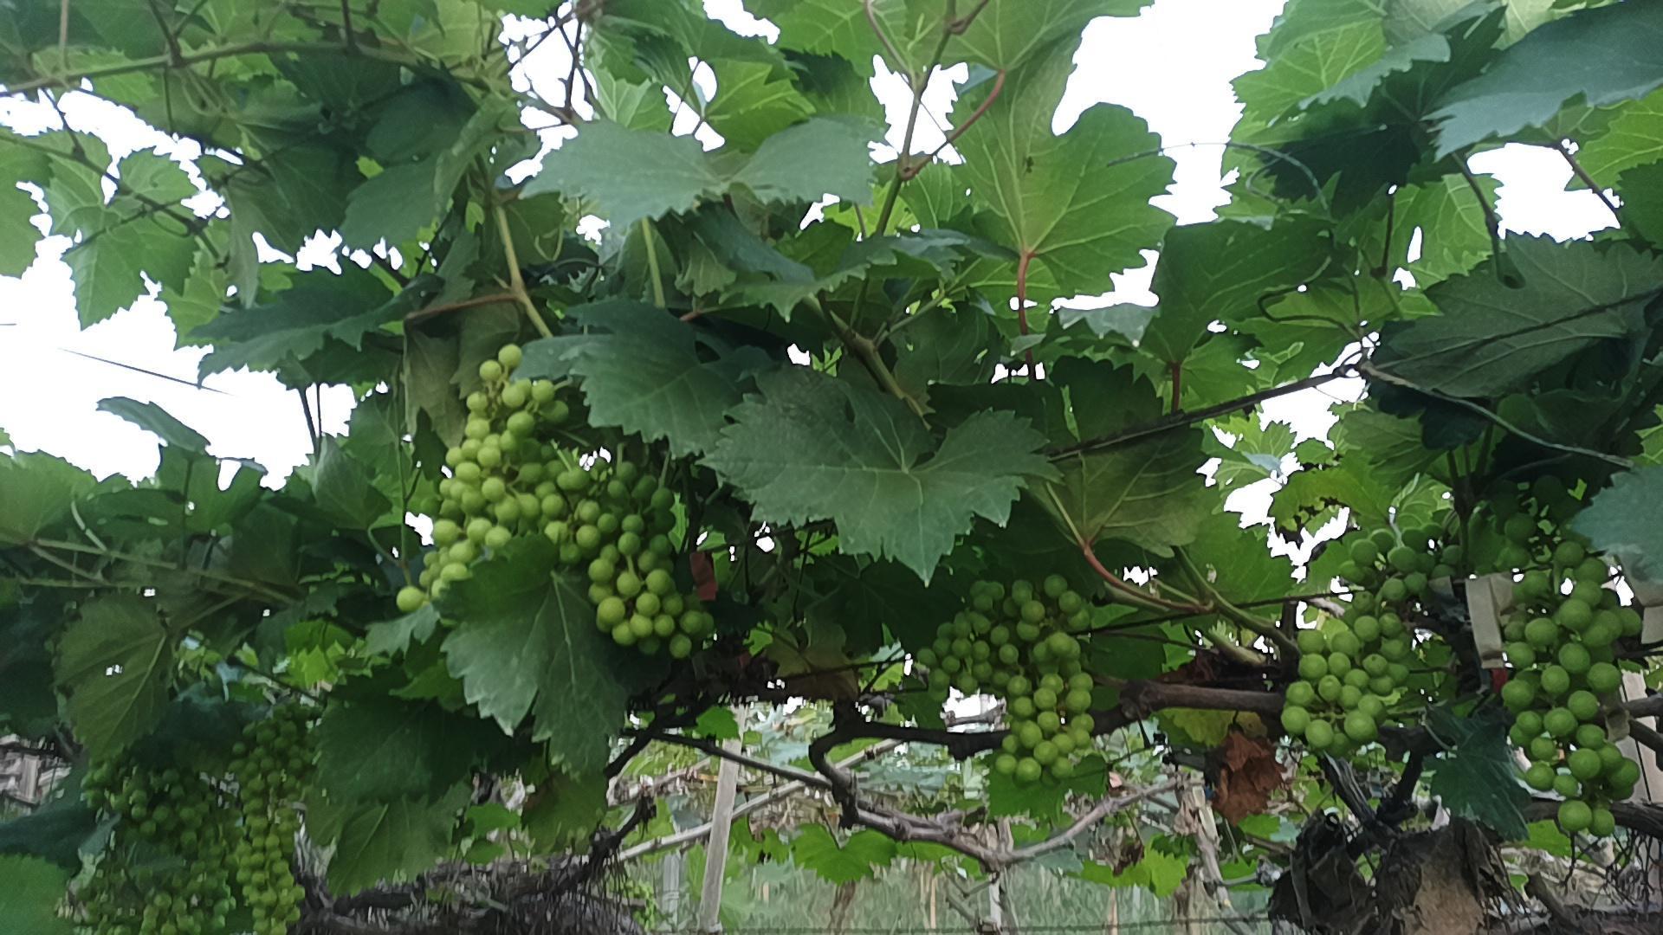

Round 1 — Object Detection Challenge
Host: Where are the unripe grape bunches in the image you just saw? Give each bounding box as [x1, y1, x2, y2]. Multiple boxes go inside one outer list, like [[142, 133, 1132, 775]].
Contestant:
[[1483, 478, 1640, 835], [916, 574, 1094, 786], [397, 345, 713, 658], [1282, 526, 1462, 753]]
